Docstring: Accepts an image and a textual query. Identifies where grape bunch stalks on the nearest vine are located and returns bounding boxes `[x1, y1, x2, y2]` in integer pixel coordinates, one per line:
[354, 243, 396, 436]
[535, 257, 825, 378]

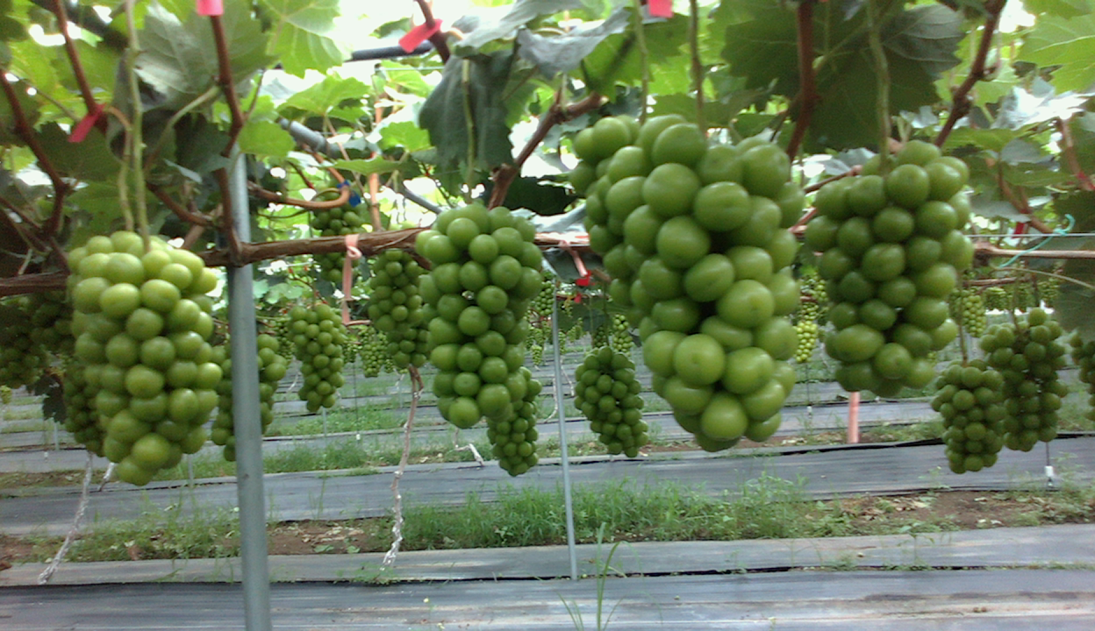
[633, 1, 648, 127]
[124, 1, 151, 256]
[867, 1, 889, 175]
[688, 1, 705, 129]
[101, 105, 133, 231]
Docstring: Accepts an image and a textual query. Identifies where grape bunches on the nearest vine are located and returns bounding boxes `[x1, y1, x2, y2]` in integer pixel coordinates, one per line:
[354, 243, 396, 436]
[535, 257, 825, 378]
[567, 115, 664, 344]
[804, 139, 974, 400]
[70, 239, 222, 486]
[414, 205, 542, 429]
[605, 114, 804, 453]
[66, 230, 140, 311]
